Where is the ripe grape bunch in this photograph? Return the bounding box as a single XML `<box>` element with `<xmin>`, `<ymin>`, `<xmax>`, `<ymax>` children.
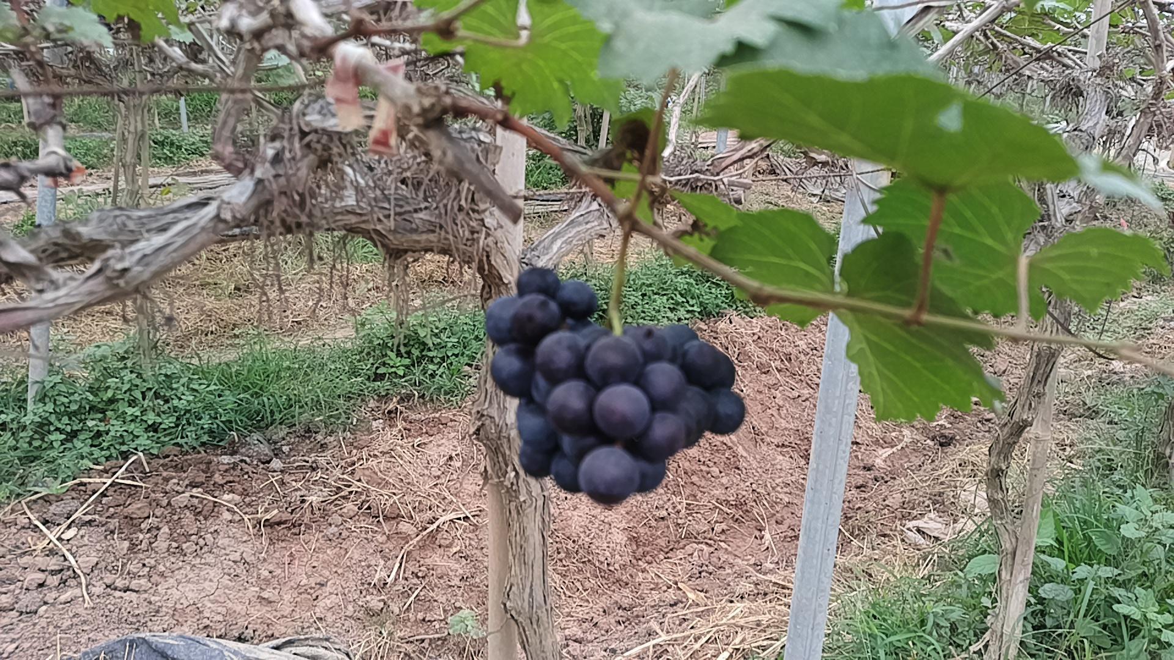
<box><xmin>486</xmin><ymin>267</ymin><xmax>745</xmax><ymax>504</ymax></box>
